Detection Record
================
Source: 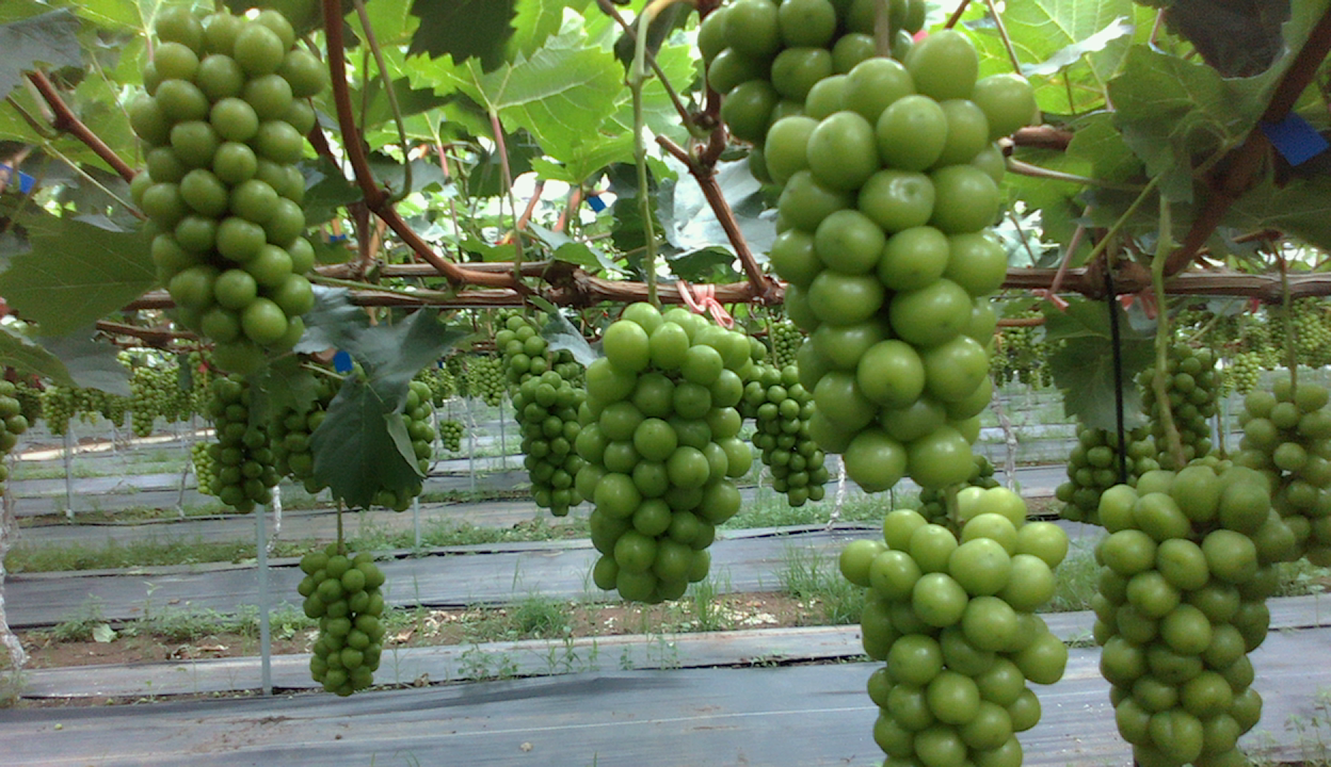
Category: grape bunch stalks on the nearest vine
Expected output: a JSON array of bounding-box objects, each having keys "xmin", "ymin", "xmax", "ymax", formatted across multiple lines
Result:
[
  {"xmin": 1280, "ymin": 263, "xmax": 1296, "ymax": 403},
  {"xmin": 632, "ymin": 0, "xmax": 677, "ymax": 309},
  {"xmin": 1151, "ymin": 200, "xmax": 1186, "ymax": 474},
  {"xmin": 943, "ymin": 487, "xmax": 960, "ymax": 542},
  {"xmin": 876, "ymin": 0, "xmax": 892, "ymax": 59}
]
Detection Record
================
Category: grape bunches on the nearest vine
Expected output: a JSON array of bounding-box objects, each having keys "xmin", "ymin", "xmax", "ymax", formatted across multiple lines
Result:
[
  {"xmin": 1091, "ymin": 464, "xmax": 1293, "ymax": 766},
  {"xmin": 575, "ymin": 301, "xmax": 755, "ymax": 606},
  {"xmin": 128, "ymin": 5, "xmax": 330, "ymax": 377},
  {"xmin": 1237, "ymin": 377, "xmax": 1330, "ymax": 566},
  {"xmin": 699, "ymin": 0, "xmax": 925, "ymax": 189},
  {"xmin": 836, "ymin": 488, "xmax": 1070, "ymax": 766},
  {"xmin": 765, "ymin": 30, "xmax": 1037, "ymax": 494}
]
